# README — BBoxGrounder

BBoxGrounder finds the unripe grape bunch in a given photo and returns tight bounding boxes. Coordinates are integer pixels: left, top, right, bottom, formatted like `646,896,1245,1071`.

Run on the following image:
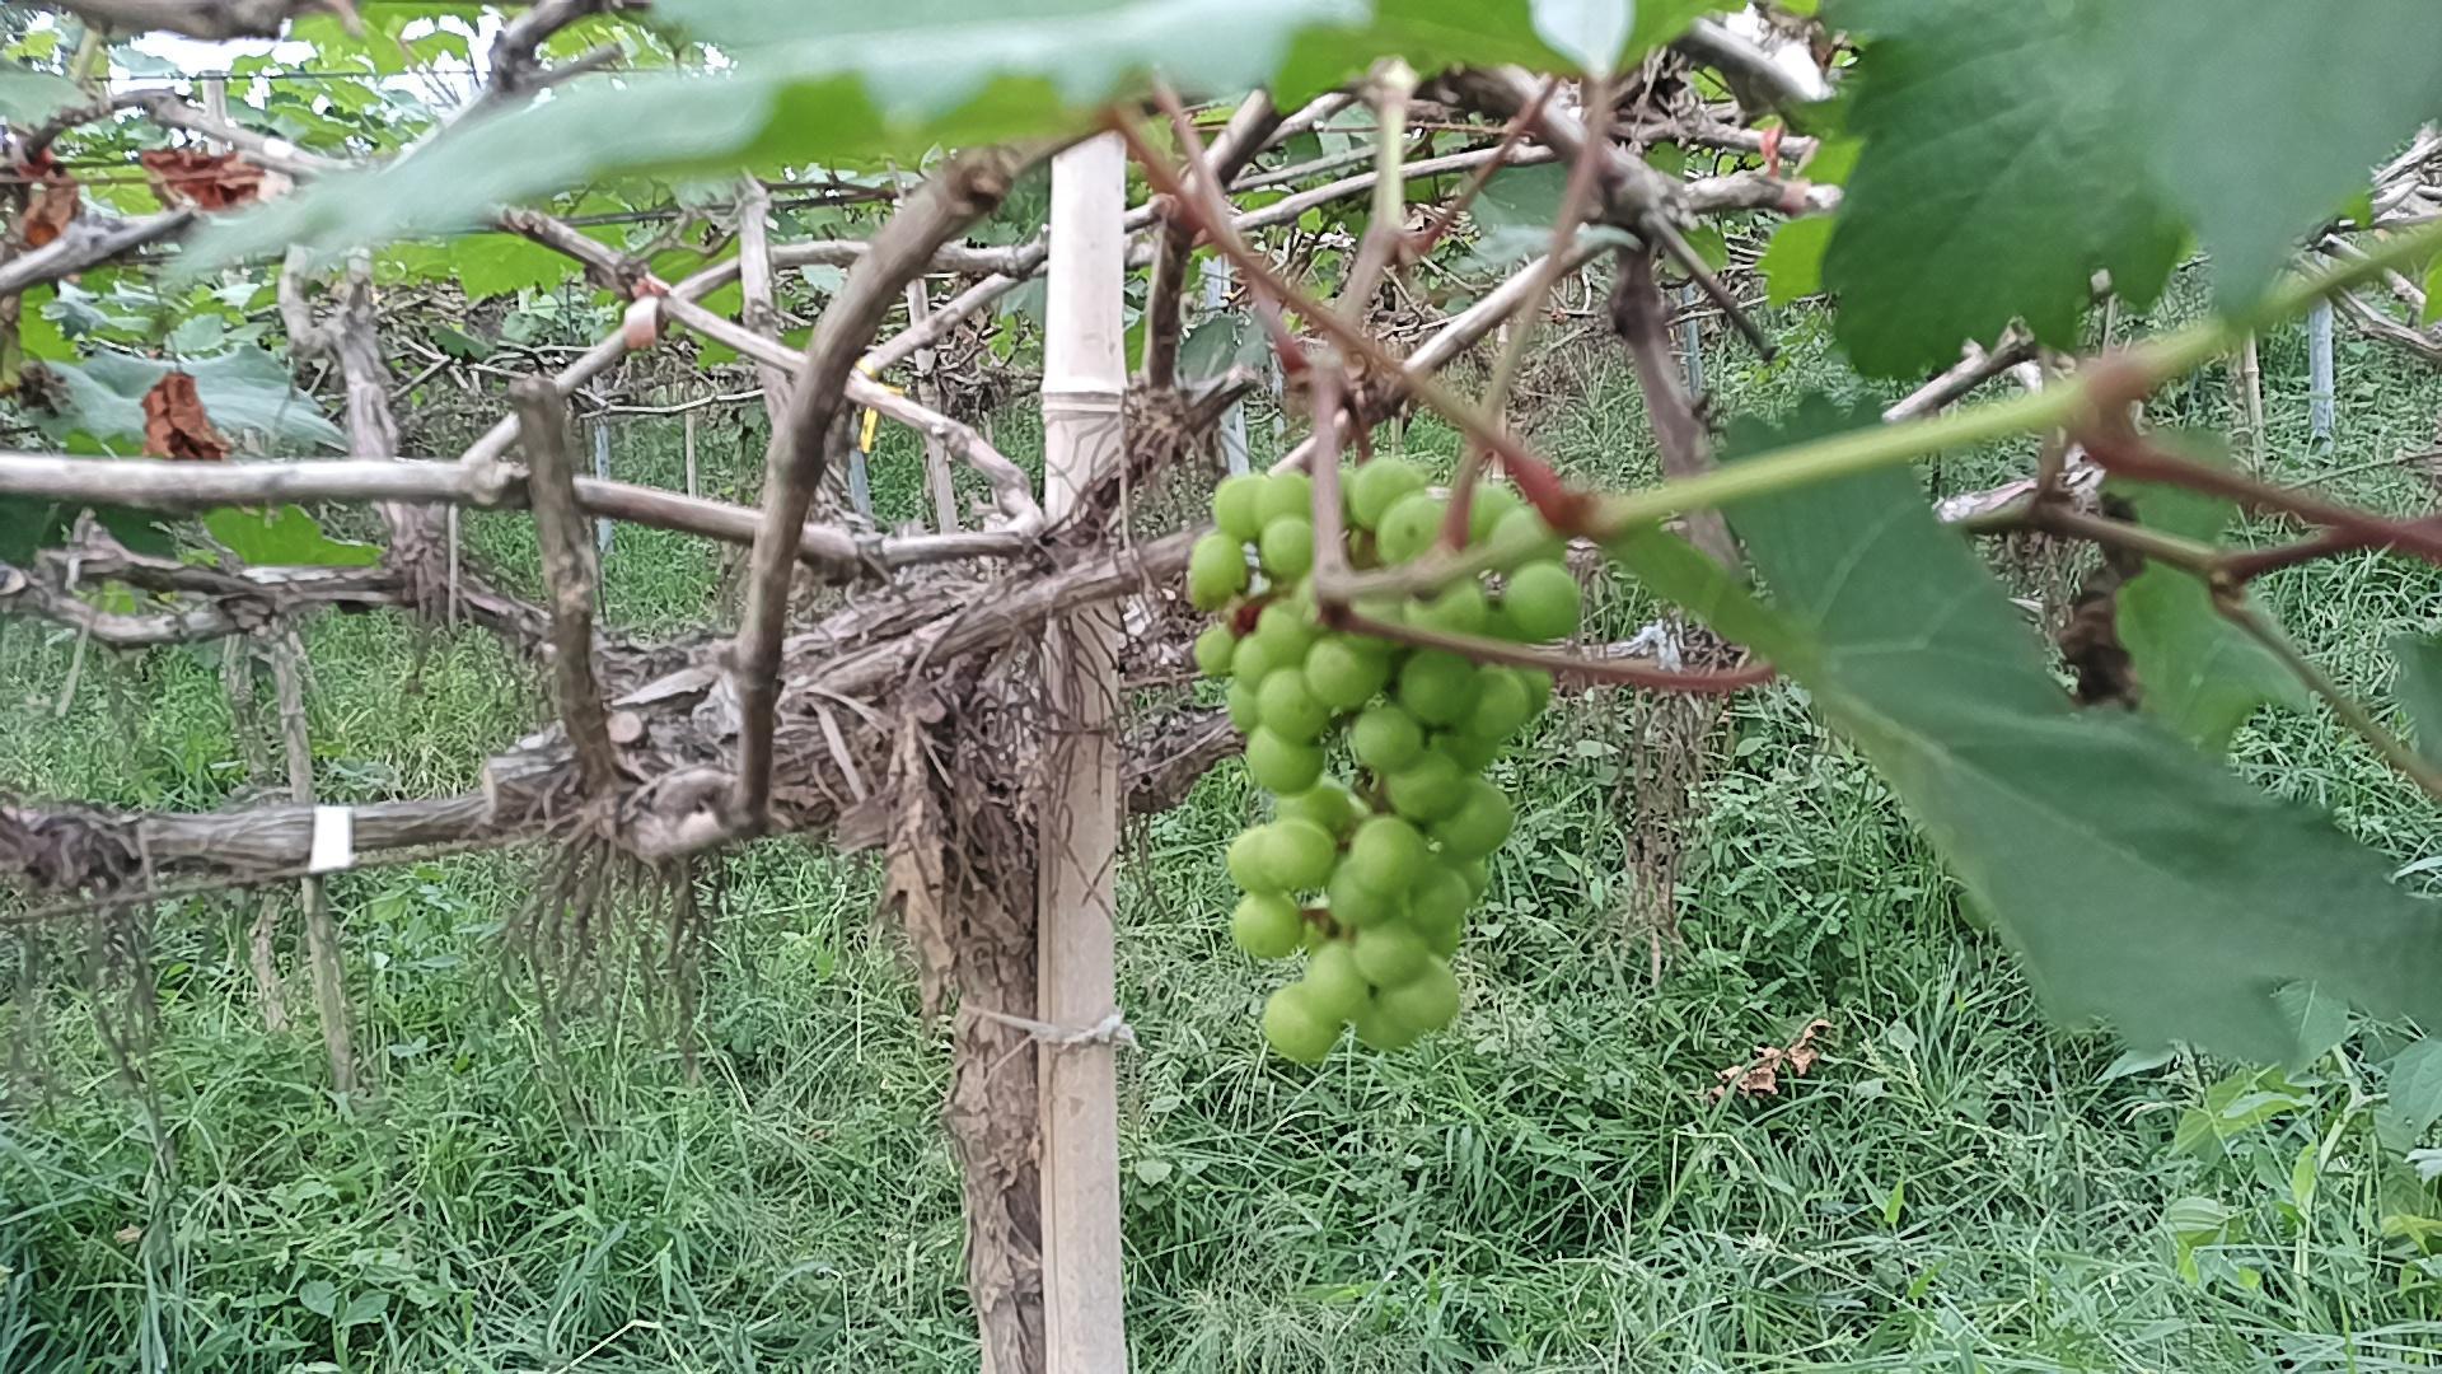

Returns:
1188,457,1580,1062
